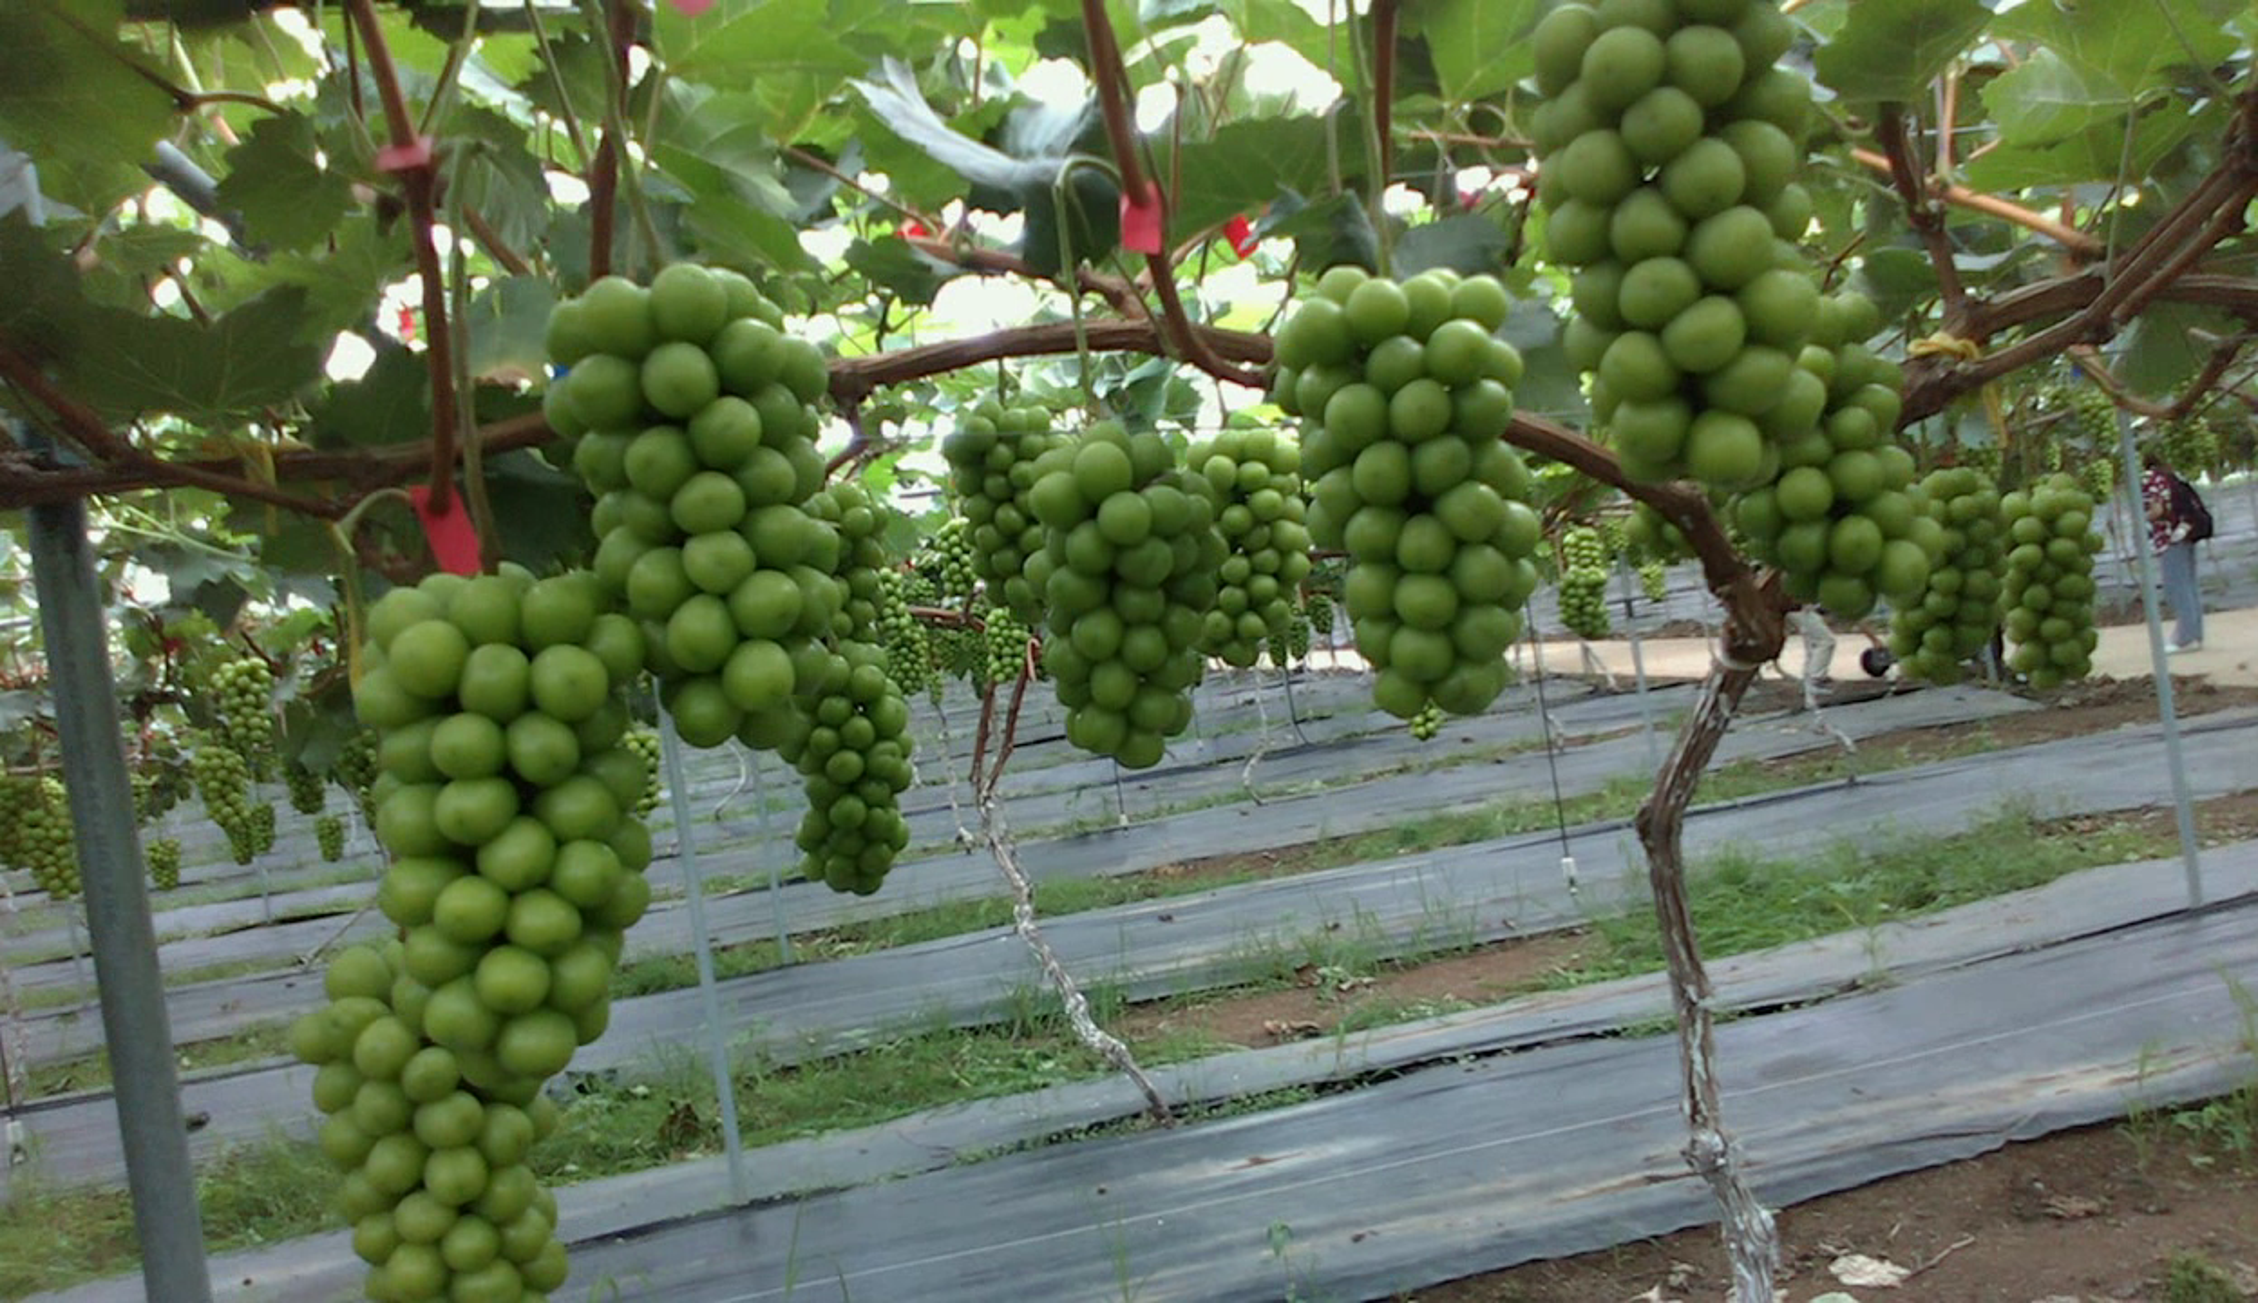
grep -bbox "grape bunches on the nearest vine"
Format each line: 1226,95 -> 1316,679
351,561 -> 653,1084
1731,293 -> 1945,621
288,943 -> 570,1301
1534,0 -> 1827,492
543,262 -> 841,751
1022,422 -> 1225,767
1272,266 -> 1540,720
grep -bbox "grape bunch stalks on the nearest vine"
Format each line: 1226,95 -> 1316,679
1344,2 -> 1390,277
579,0 -> 668,273
333,489 -> 411,939
1053,156 -> 1125,423
454,367 -> 501,577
